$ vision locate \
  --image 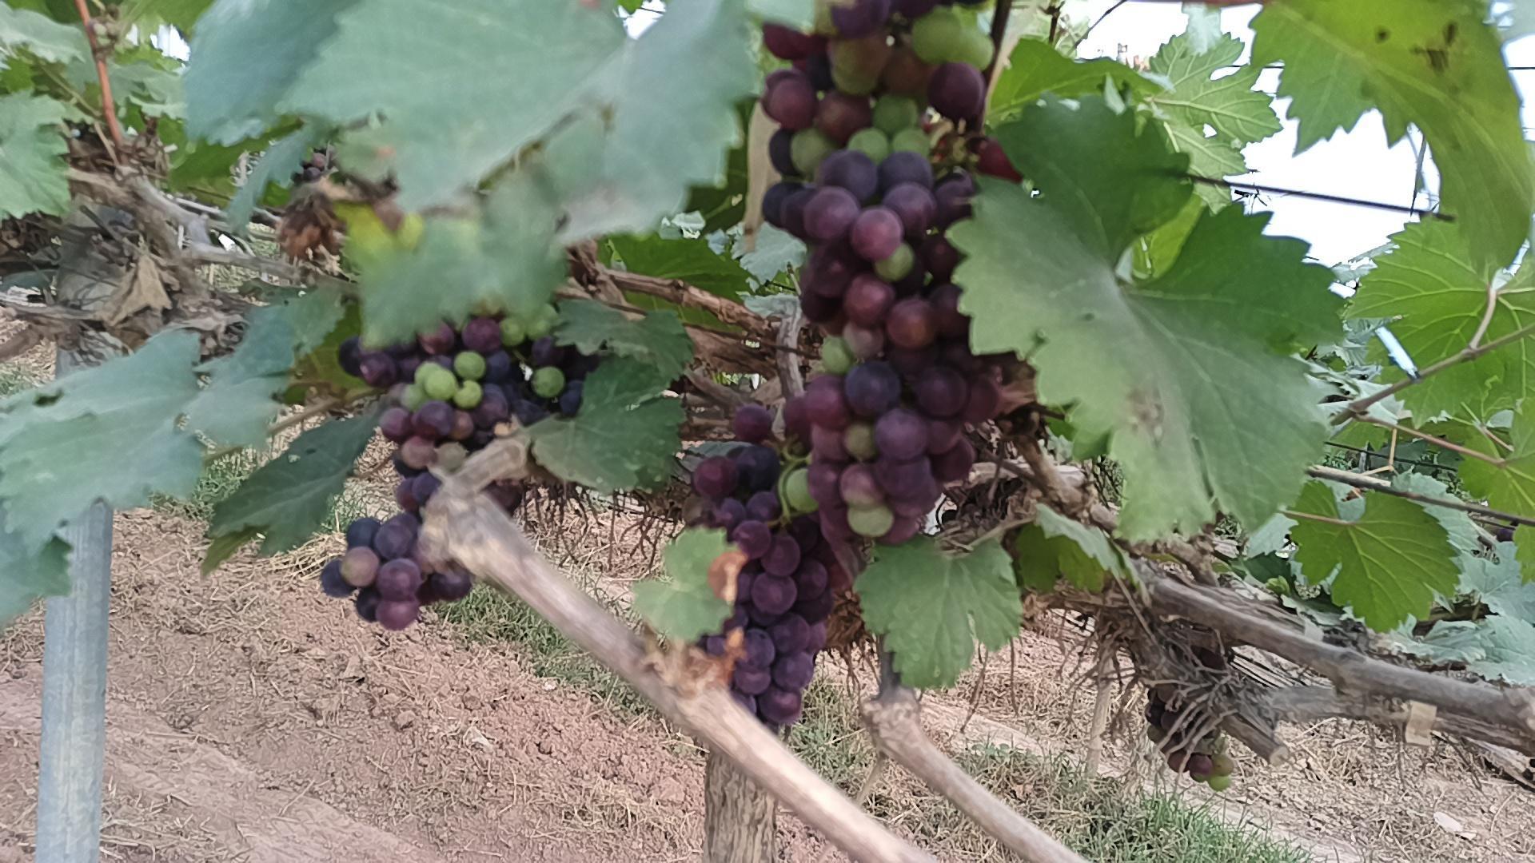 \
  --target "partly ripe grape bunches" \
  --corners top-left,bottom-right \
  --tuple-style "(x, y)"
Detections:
(693, 398), (837, 730)
(1133, 624), (1236, 789)
(759, 0), (1017, 544)
(321, 316), (600, 629)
